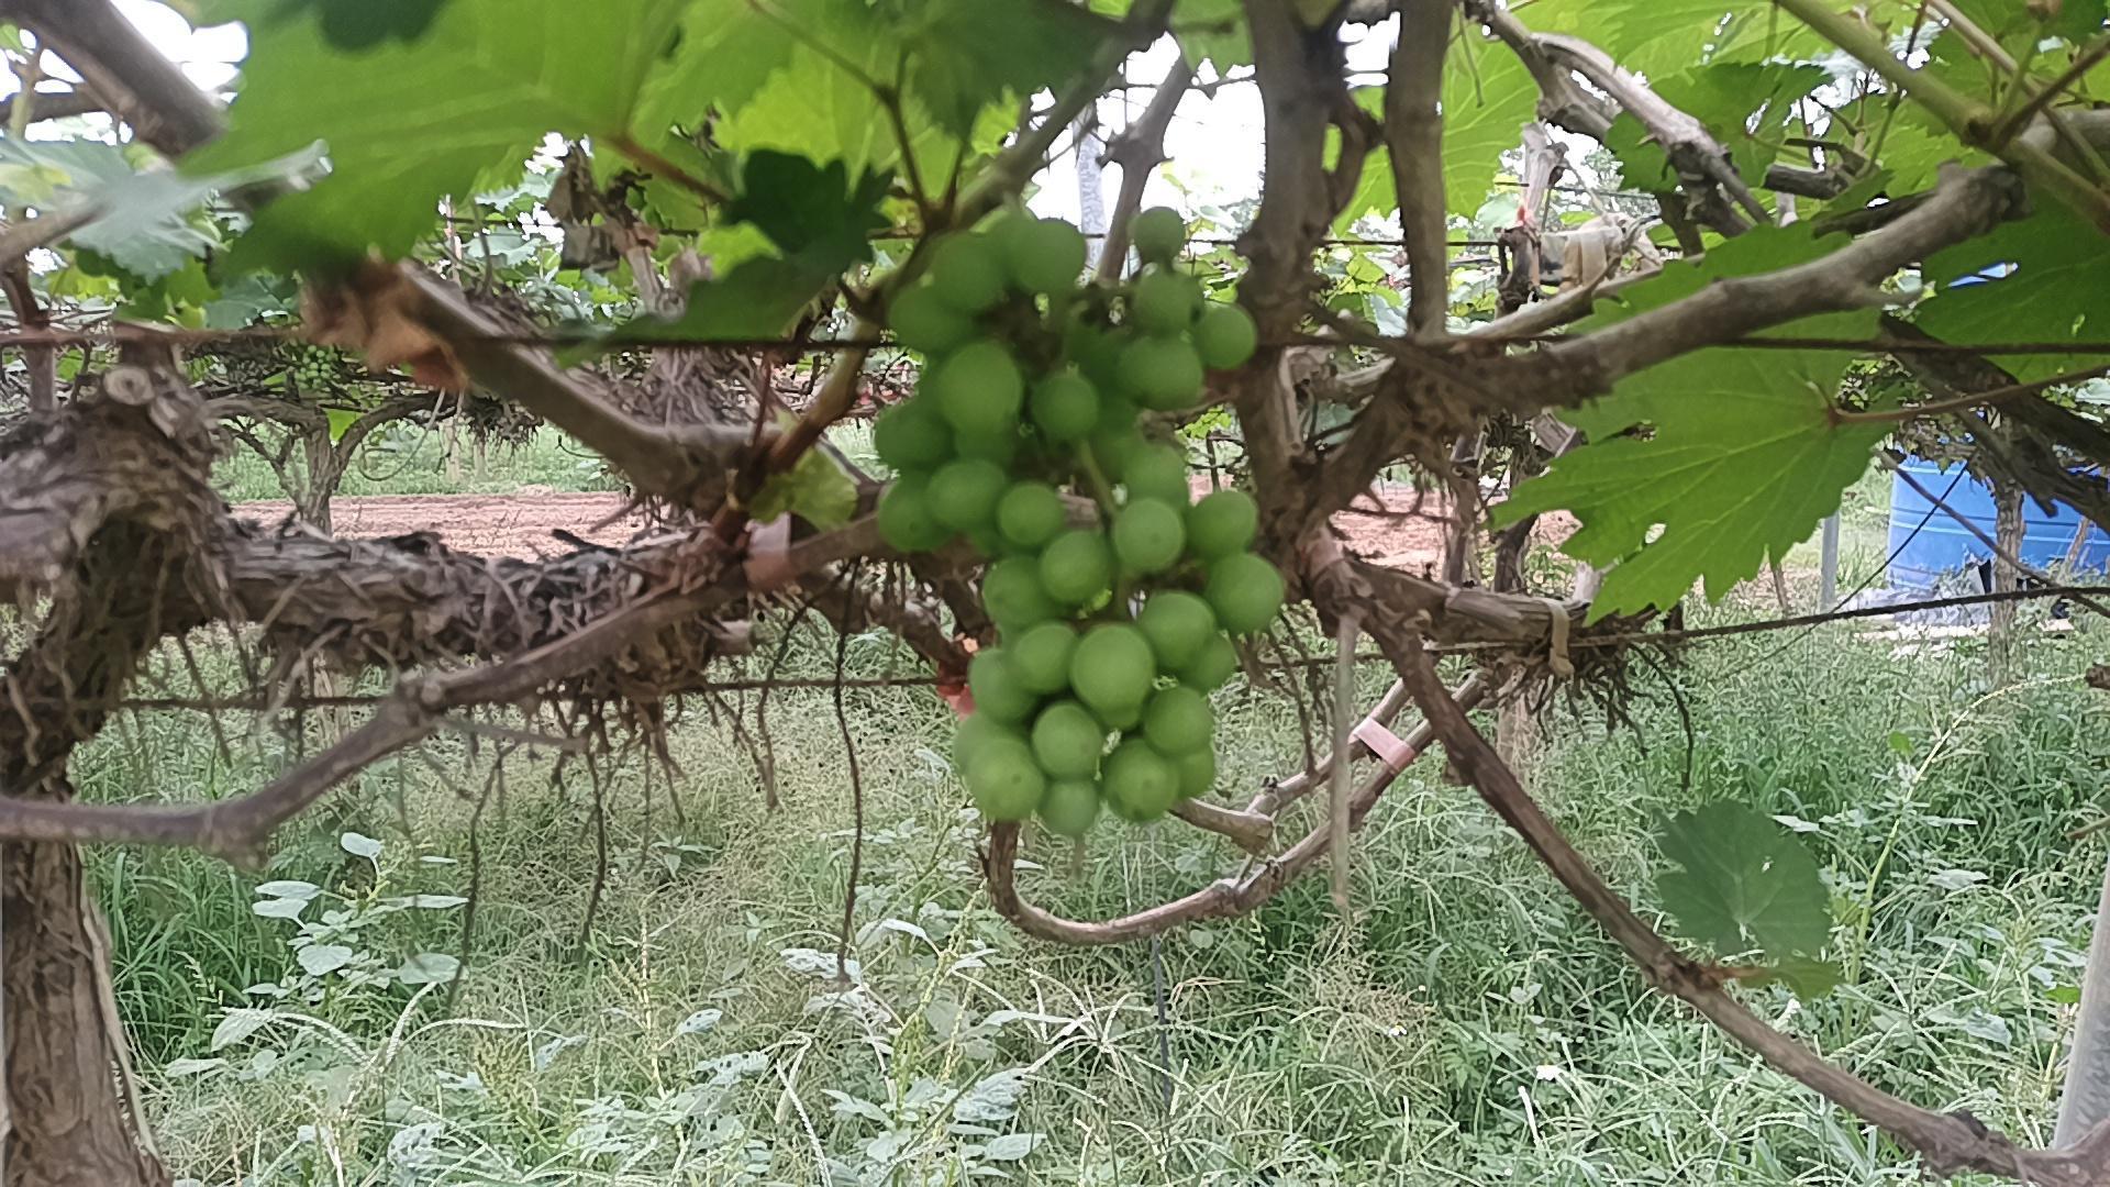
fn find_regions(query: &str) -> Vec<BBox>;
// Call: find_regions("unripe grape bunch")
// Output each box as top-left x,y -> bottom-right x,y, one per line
877,213 -> 1282,841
